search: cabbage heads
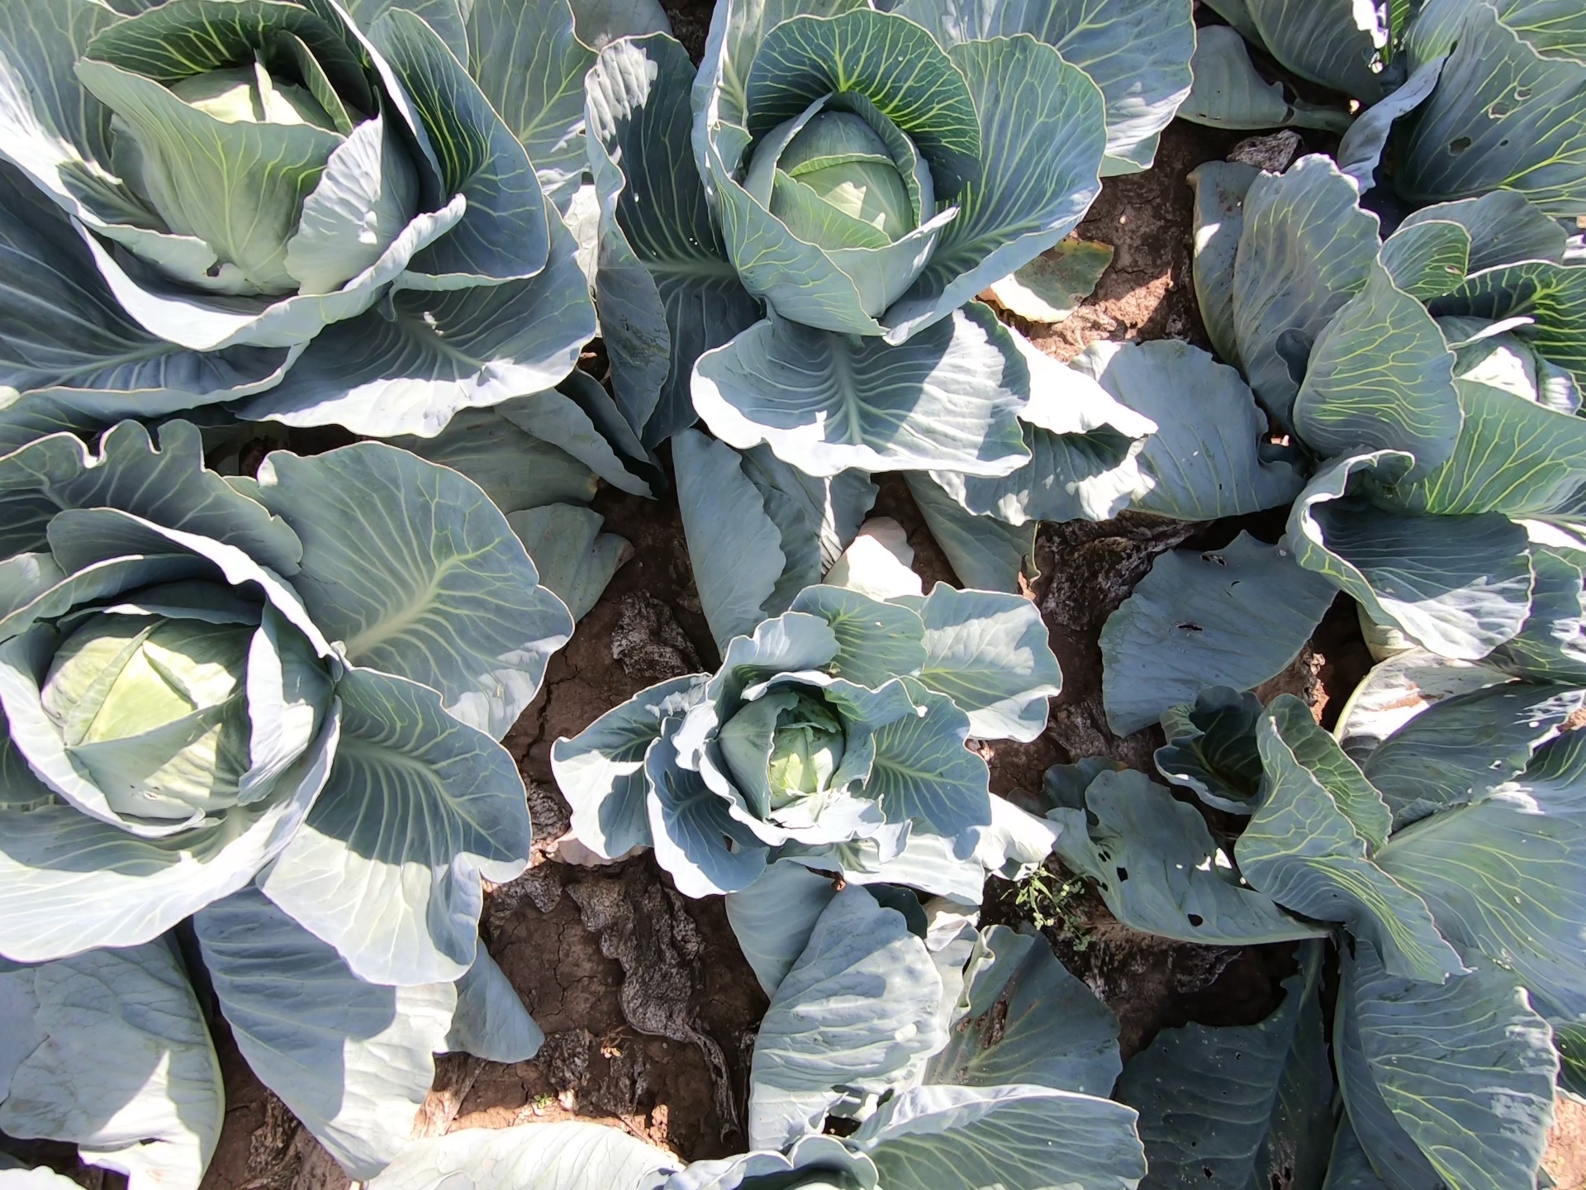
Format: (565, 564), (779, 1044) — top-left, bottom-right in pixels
(37, 588), (323, 815)
(137, 71), (374, 284)
(763, 108), (938, 301)
(733, 692), (852, 809)
(1394, 319), (1546, 469)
